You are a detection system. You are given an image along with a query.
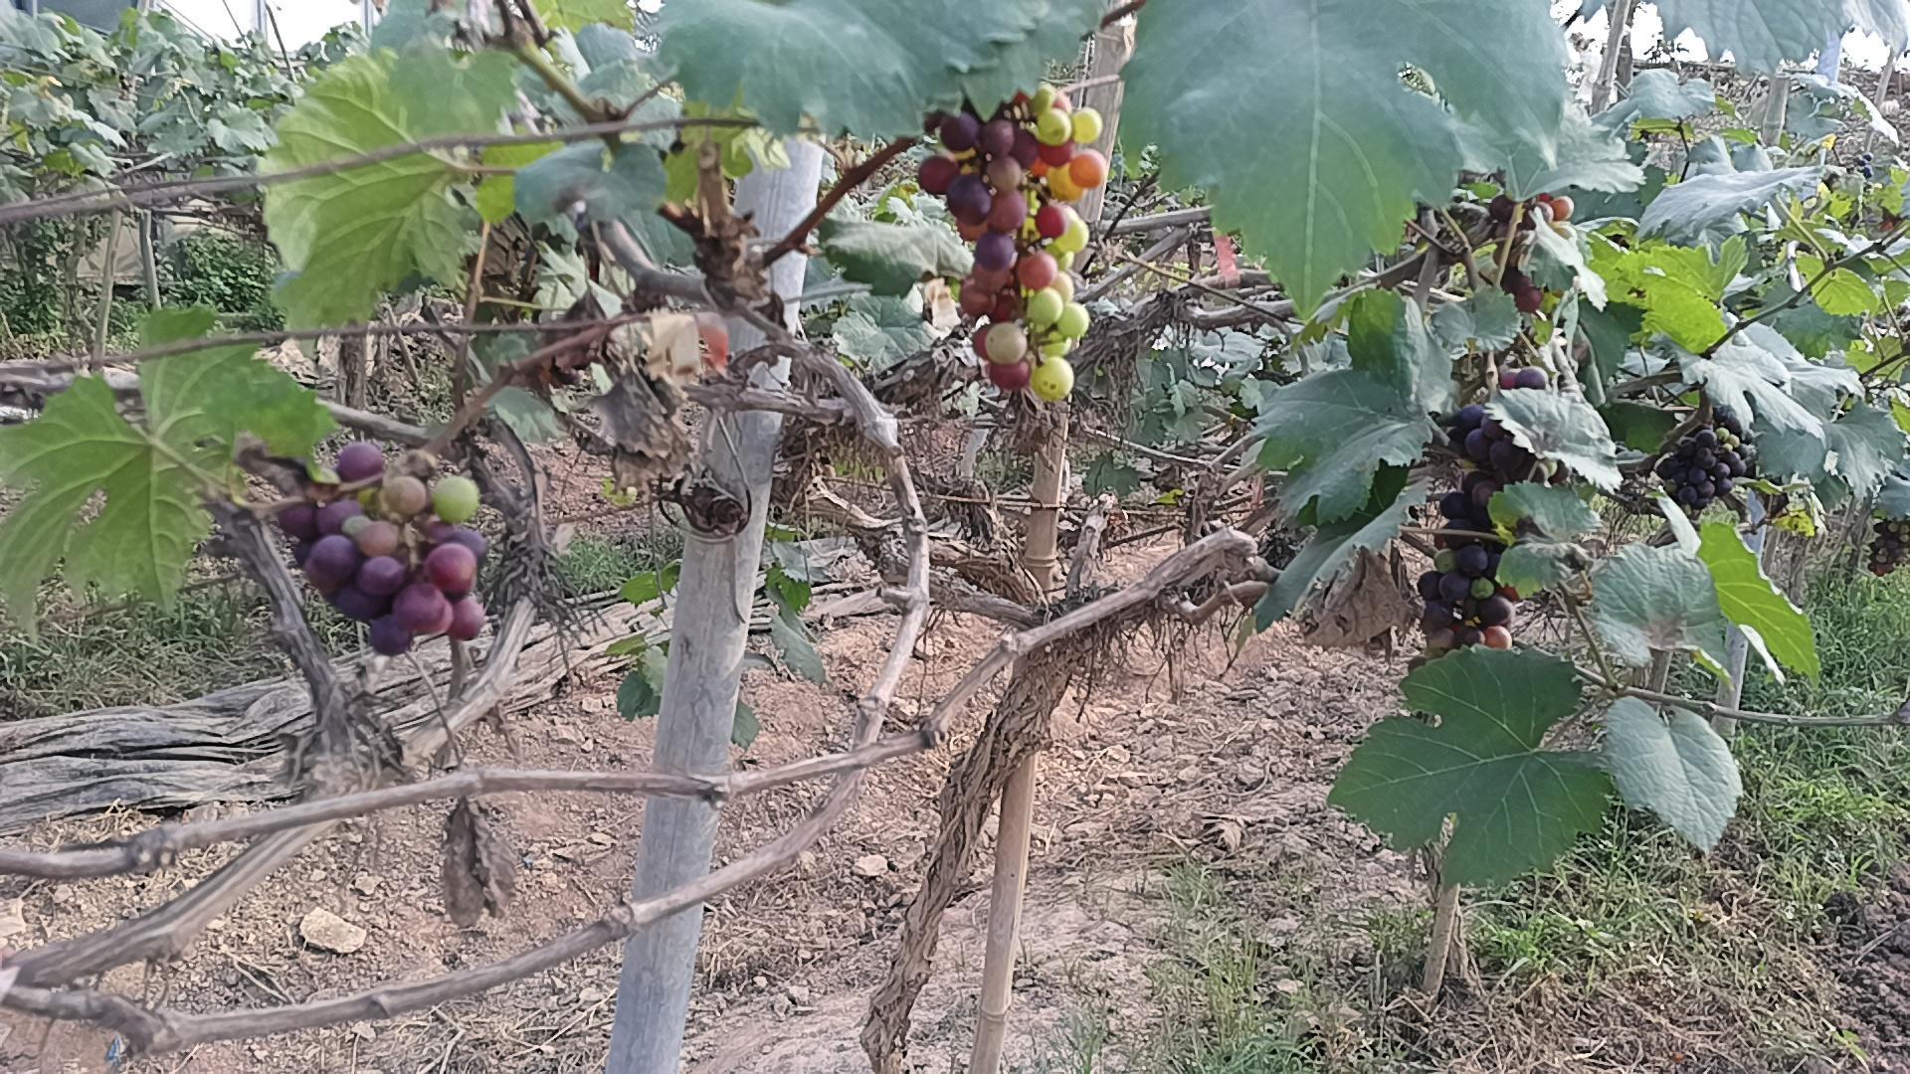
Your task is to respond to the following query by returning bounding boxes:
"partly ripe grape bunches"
[1407,367,1572,674]
[917,85,1107,402]
[278,442,486,656]
[1493,192,1577,317]
[1868,515,1909,576]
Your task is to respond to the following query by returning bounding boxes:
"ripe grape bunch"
[1654,426,1753,515]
